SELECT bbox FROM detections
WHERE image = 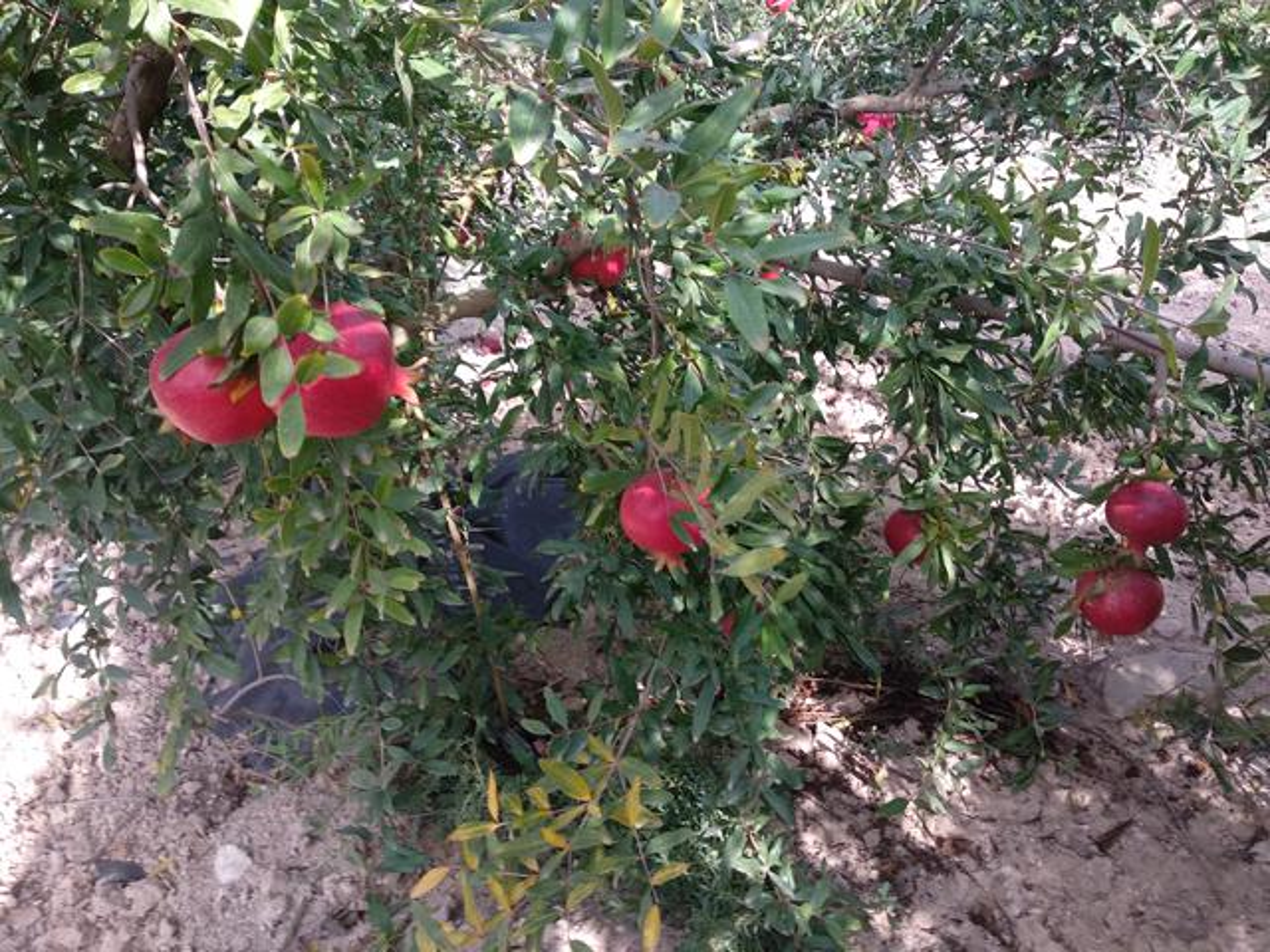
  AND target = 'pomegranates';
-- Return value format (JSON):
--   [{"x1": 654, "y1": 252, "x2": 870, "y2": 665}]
[
  {"x1": 147, "y1": 325, "x2": 278, "y2": 446},
  {"x1": 274, "y1": 299, "x2": 425, "y2": 436},
  {"x1": 1076, "y1": 567, "x2": 1165, "y2": 635},
  {"x1": 570, "y1": 250, "x2": 627, "y2": 288},
  {"x1": 885, "y1": 508, "x2": 923, "y2": 555},
  {"x1": 1103, "y1": 480, "x2": 1189, "y2": 557},
  {"x1": 766, "y1": 0, "x2": 794, "y2": 14},
  {"x1": 855, "y1": 111, "x2": 895, "y2": 137},
  {"x1": 619, "y1": 470, "x2": 712, "y2": 575}
]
